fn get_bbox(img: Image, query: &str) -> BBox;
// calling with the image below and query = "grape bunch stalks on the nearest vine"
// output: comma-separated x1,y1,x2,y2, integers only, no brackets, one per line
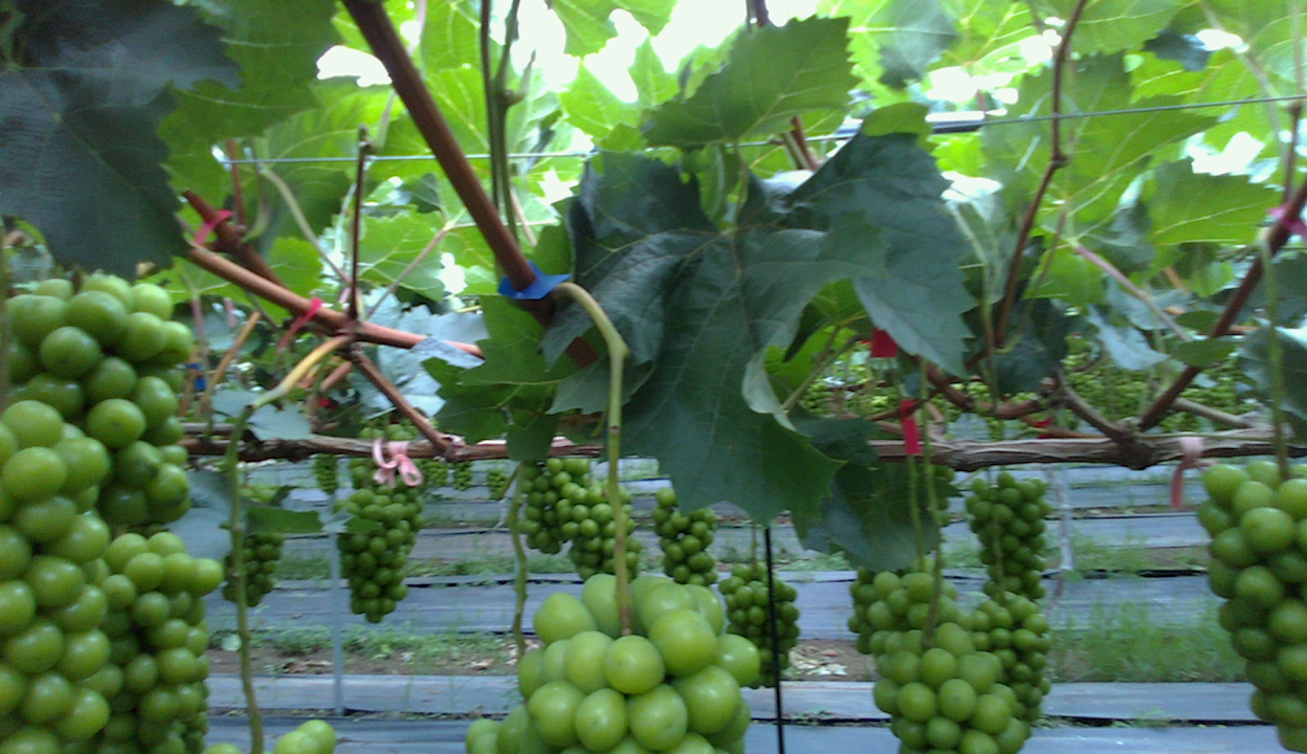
918,354,943,648
553,284,635,637
1257,225,1293,481
907,454,926,574
227,336,355,753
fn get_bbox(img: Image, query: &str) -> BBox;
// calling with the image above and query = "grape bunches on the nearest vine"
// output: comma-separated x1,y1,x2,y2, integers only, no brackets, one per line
505,573,762,753
857,574,959,653
0,401,112,753
1197,461,1305,753
276,718,334,753
874,625,1024,753
4,271,193,529
68,533,225,753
